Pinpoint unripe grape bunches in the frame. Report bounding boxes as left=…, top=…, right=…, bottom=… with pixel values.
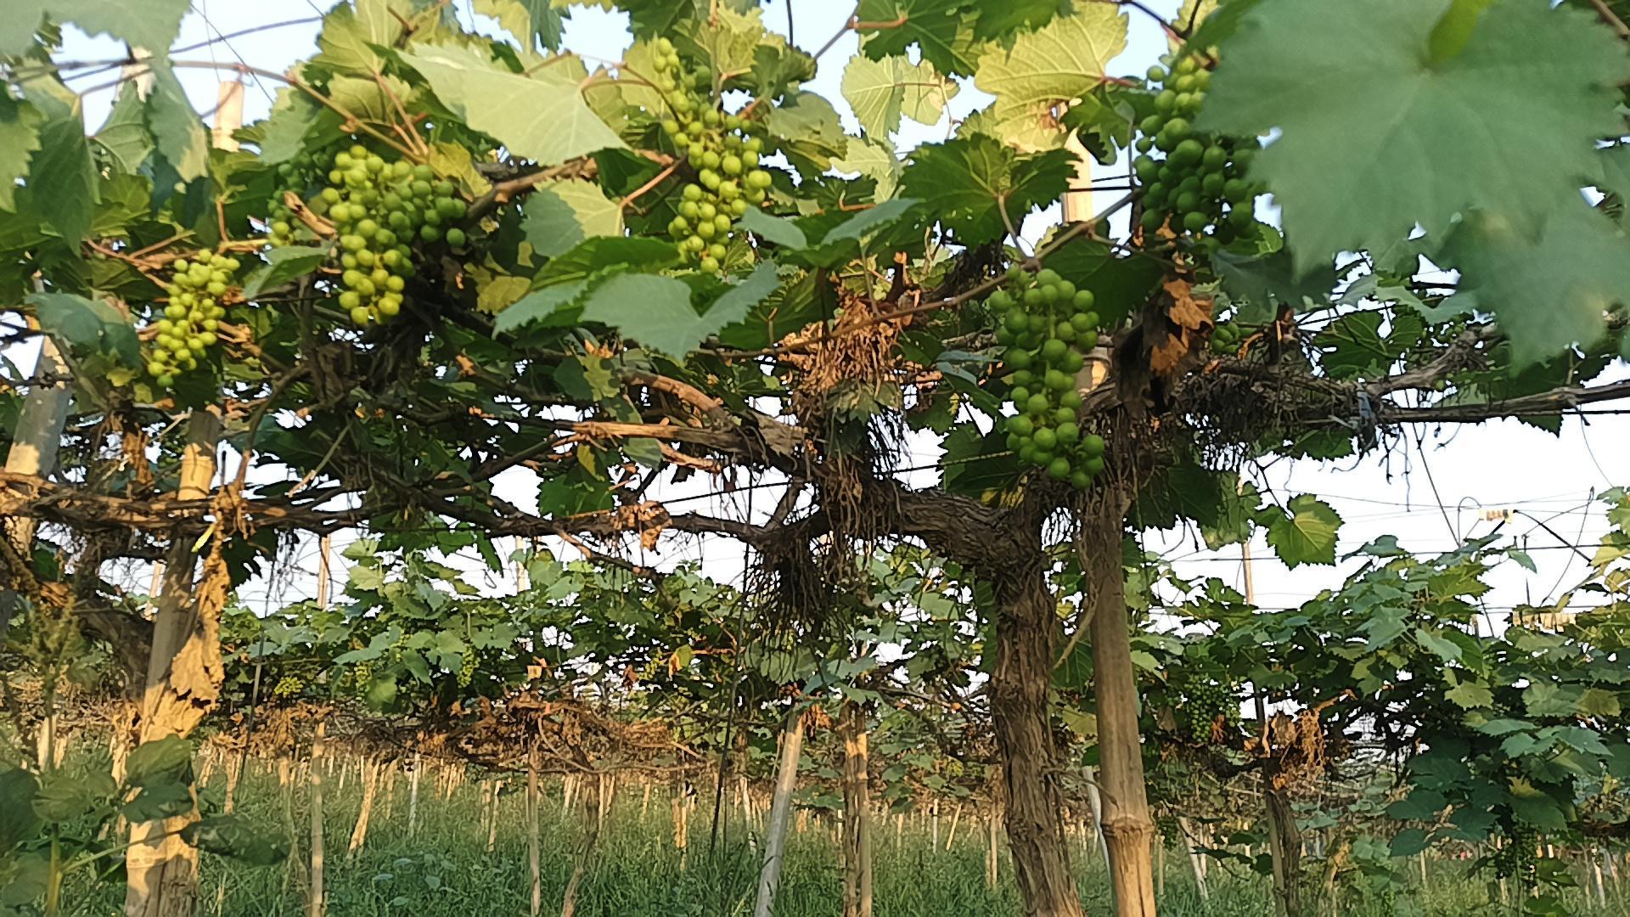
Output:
left=651, top=38, right=769, bottom=272
left=456, top=650, right=481, bottom=688
left=268, top=137, right=356, bottom=246
left=1185, top=668, right=1239, bottom=745
left=1134, top=56, right=1259, bottom=244
left=355, top=661, right=373, bottom=697
left=276, top=676, right=303, bottom=697
left=987, top=267, right=1104, bottom=487
left=323, top=145, right=466, bottom=327
left=1211, top=321, right=1256, bottom=353
left=148, top=249, right=243, bottom=387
